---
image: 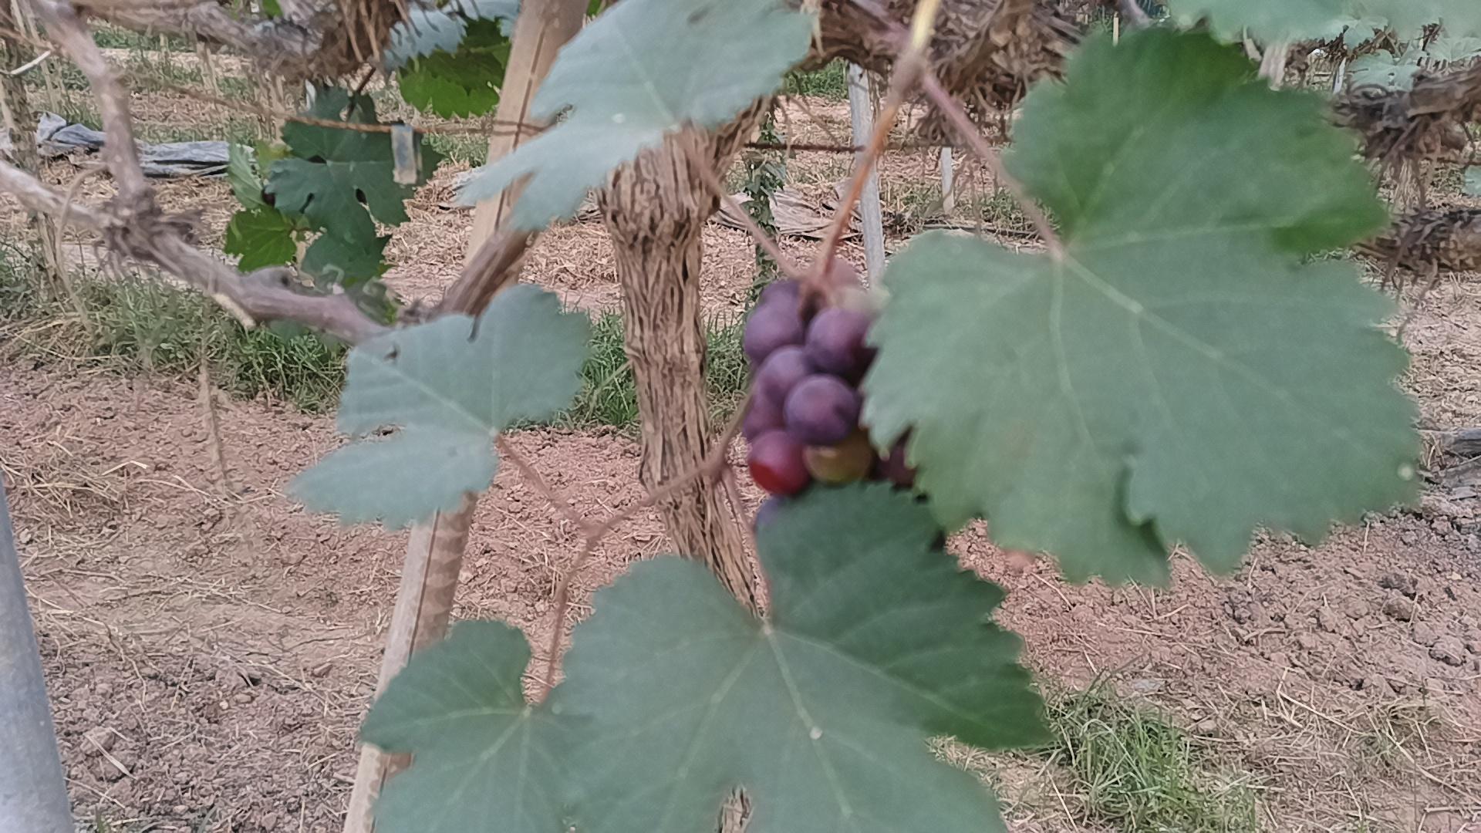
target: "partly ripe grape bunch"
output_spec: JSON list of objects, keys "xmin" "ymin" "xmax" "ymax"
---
[{"xmin": 740, "ymin": 257, "xmax": 913, "ymax": 527}]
